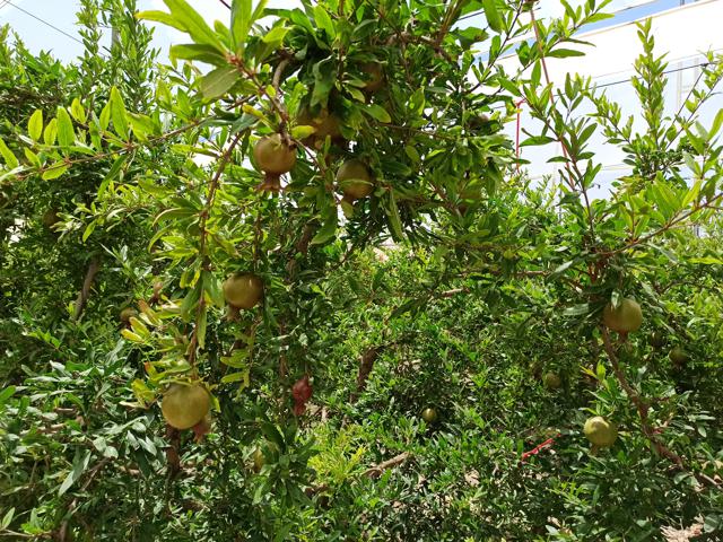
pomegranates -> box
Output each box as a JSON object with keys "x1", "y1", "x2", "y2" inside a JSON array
[
  {"x1": 651, "y1": 331, "x2": 663, "y2": 347},
  {"x1": 360, "y1": 64, "x2": 386, "y2": 91},
  {"x1": 160, "y1": 384, "x2": 212, "y2": 446},
  {"x1": 421, "y1": 408, "x2": 437, "y2": 422},
  {"x1": 602, "y1": 298, "x2": 644, "y2": 342},
  {"x1": 245, "y1": 449, "x2": 262, "y2": 474},
  {"x1": 291, "y1": 378, "x2": 312, "y2": 416},
  {"x1": 337, "y1": 159, "x2": 373, "y2": 207},
  {"x1": 120, "y1": 307, "x2": 137, "y2": 327},
  {"x1": 220, "y1": 273, "x2": 264, "y2": 324},
  {"x1": 584, "y1": 416, "x2": 619, "y2": 456},
  {"x1": 146, "y1": 281, "x2": 163, "y2": 304},
  {"x1": 545, "y1": 370, "x2": 563, "y2": 388},
  {"x1": 669, "y1": 347, "x2": 688, "y2": 371},
  {"x1": 43, "y1": 211, "x2": 62, "y2": 228},
  {"x1": 253, "y1": 132, "x2": 297, "y2": 192},
  {"x1": 296, "y1": 116, "x2": 341, "y2": 148}
]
